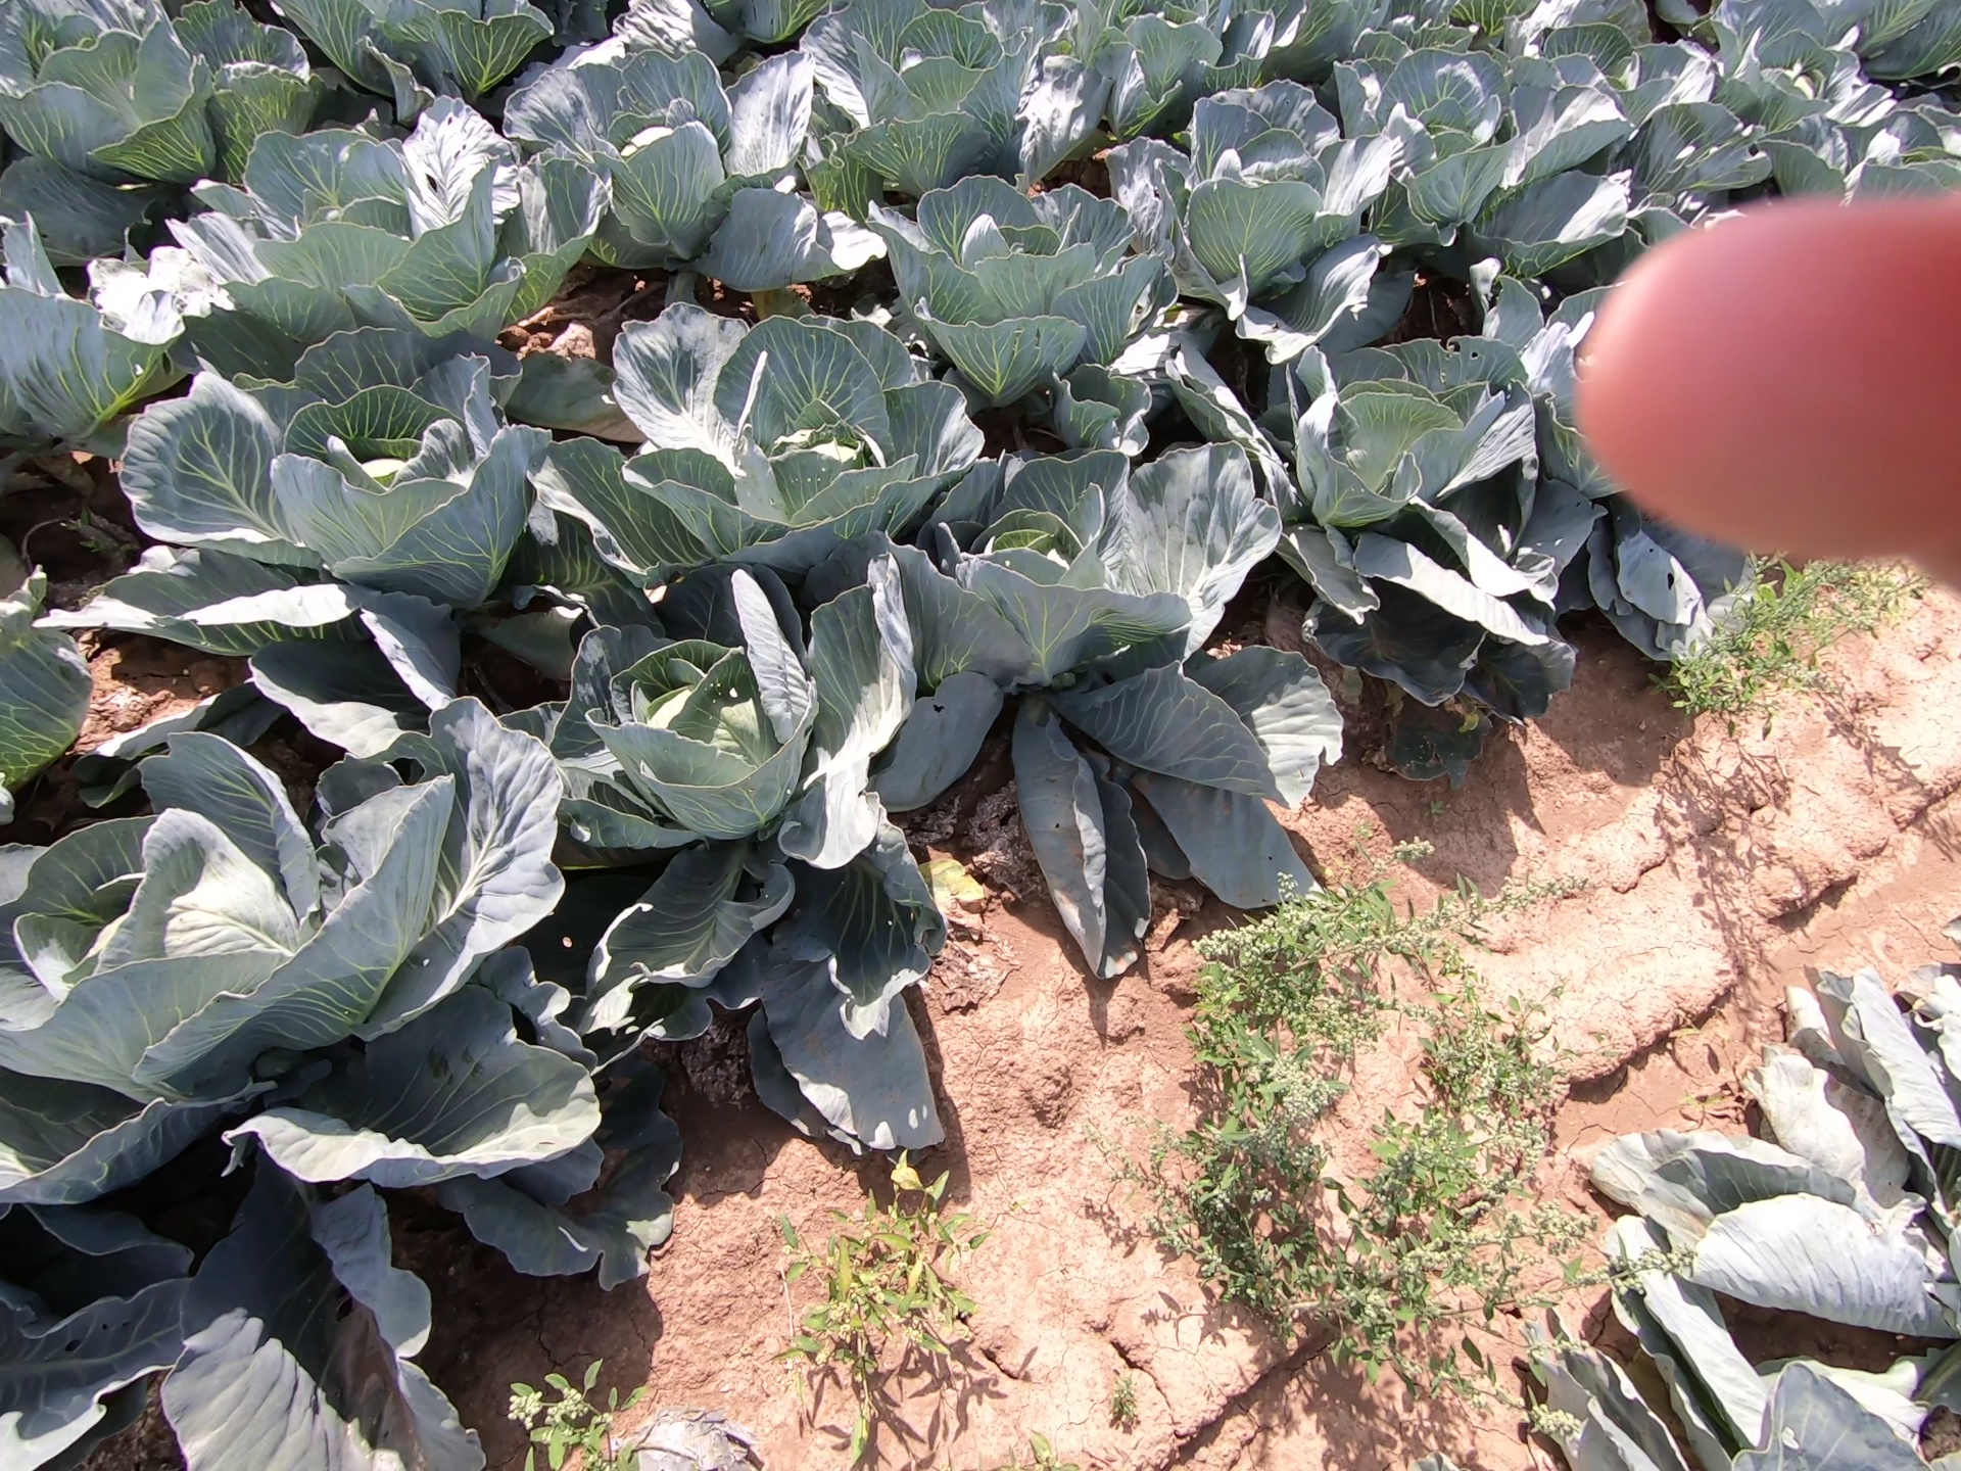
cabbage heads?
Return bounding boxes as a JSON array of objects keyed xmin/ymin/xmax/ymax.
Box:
[
  {"xmin": 339, "ymin": 453, "xmax": 442, "ymax": 548},
  {"xmin": 620, "ymin": 124, "xmax": 703, "ymax": 213},
  {"xmin": 79, "ymin": 895, "xmax": 290, "ymax": 1040},
  {"xmin": 785, "ymin": 436, "xmax": 873, "ymax": 525},
  {"xmin": 978, "ymin": 543, "xmax": 1084, "ymax": 652},
  {"xmin": 645, "ymin": 678, "xmax": 780, "ymax": 802}
]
